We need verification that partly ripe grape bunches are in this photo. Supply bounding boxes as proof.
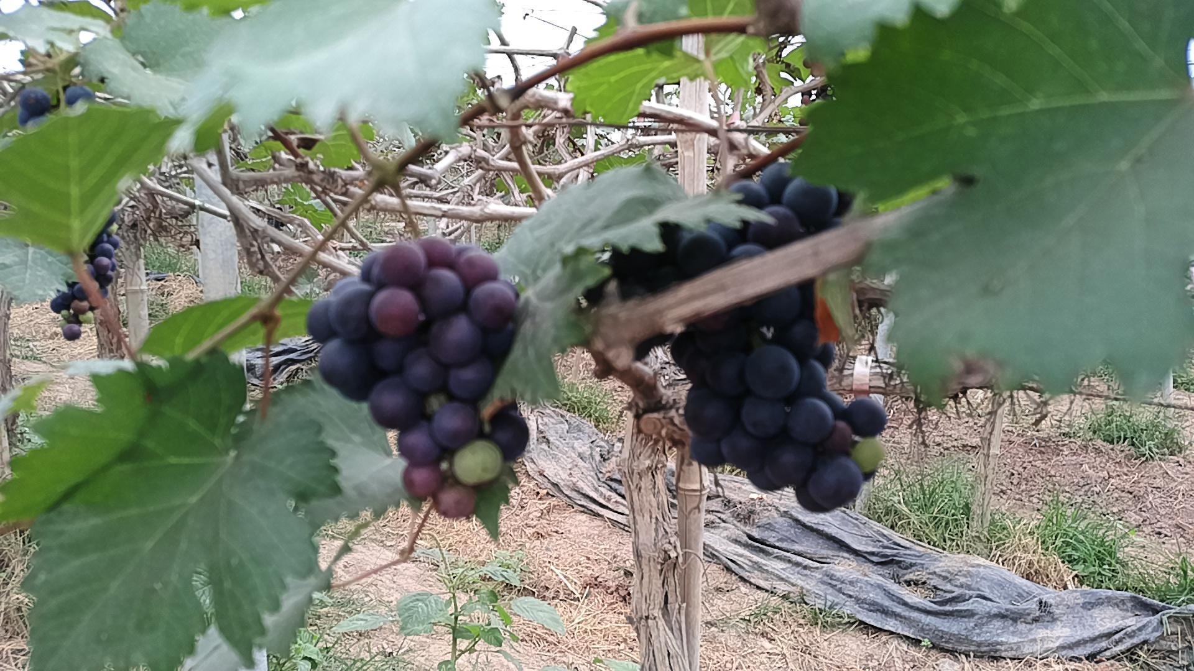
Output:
[635,275,887,514]
[50,281,100,341]
[83,212,121,299]
[303,235,531,519]
[581,160,858,308]
[18,88,51,128]
[64,86,95,106]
